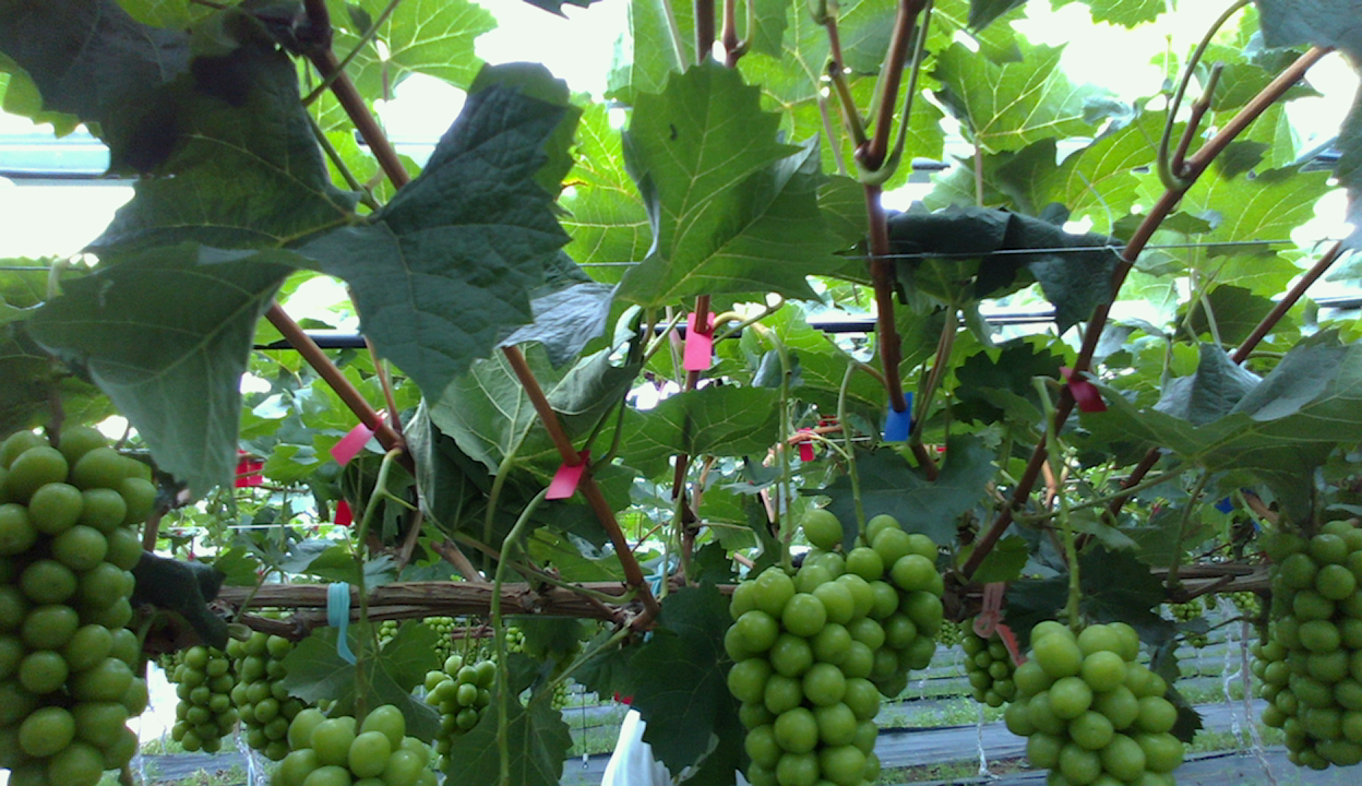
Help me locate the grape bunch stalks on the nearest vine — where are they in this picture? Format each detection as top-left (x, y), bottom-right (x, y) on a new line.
top-left (749, 321), bottom-right (797, 575)
top-left (44, 353), bottom-right (67, 448)
top-left (836, 362), bottom-right (868, 546)
top-left (1307, 467), bottom-right (1318, 538)
top-left (1029, 376), bottom-right (1083, 633)
top-left (354, 449), bottom-right (403, 735)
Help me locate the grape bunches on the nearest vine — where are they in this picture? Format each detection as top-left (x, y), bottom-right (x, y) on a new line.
top-left (0, 426), bottom-right (157, 785)
top-left (802, 509), bottom-right (945, 700)
top-left (1004, 621), bottom-right (1185, 785)
top-left (724, 564), bottom-right (885, 785)
top-left (270, 704), bottom-right (439, 785)
top-left (1264, 521), bottom-right (1361, 767)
